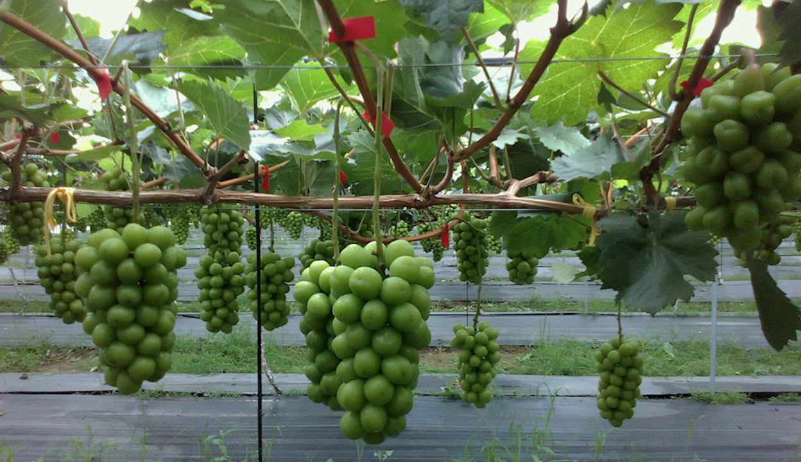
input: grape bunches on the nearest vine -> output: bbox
[74,223,188,397]
[331,239,435,444]
[293,261,341,411]
[680,64,800,250]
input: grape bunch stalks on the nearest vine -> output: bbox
[331,97,345,265]
[123,58,141,223]
[357,45,388,277]
[743,50,755,62]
